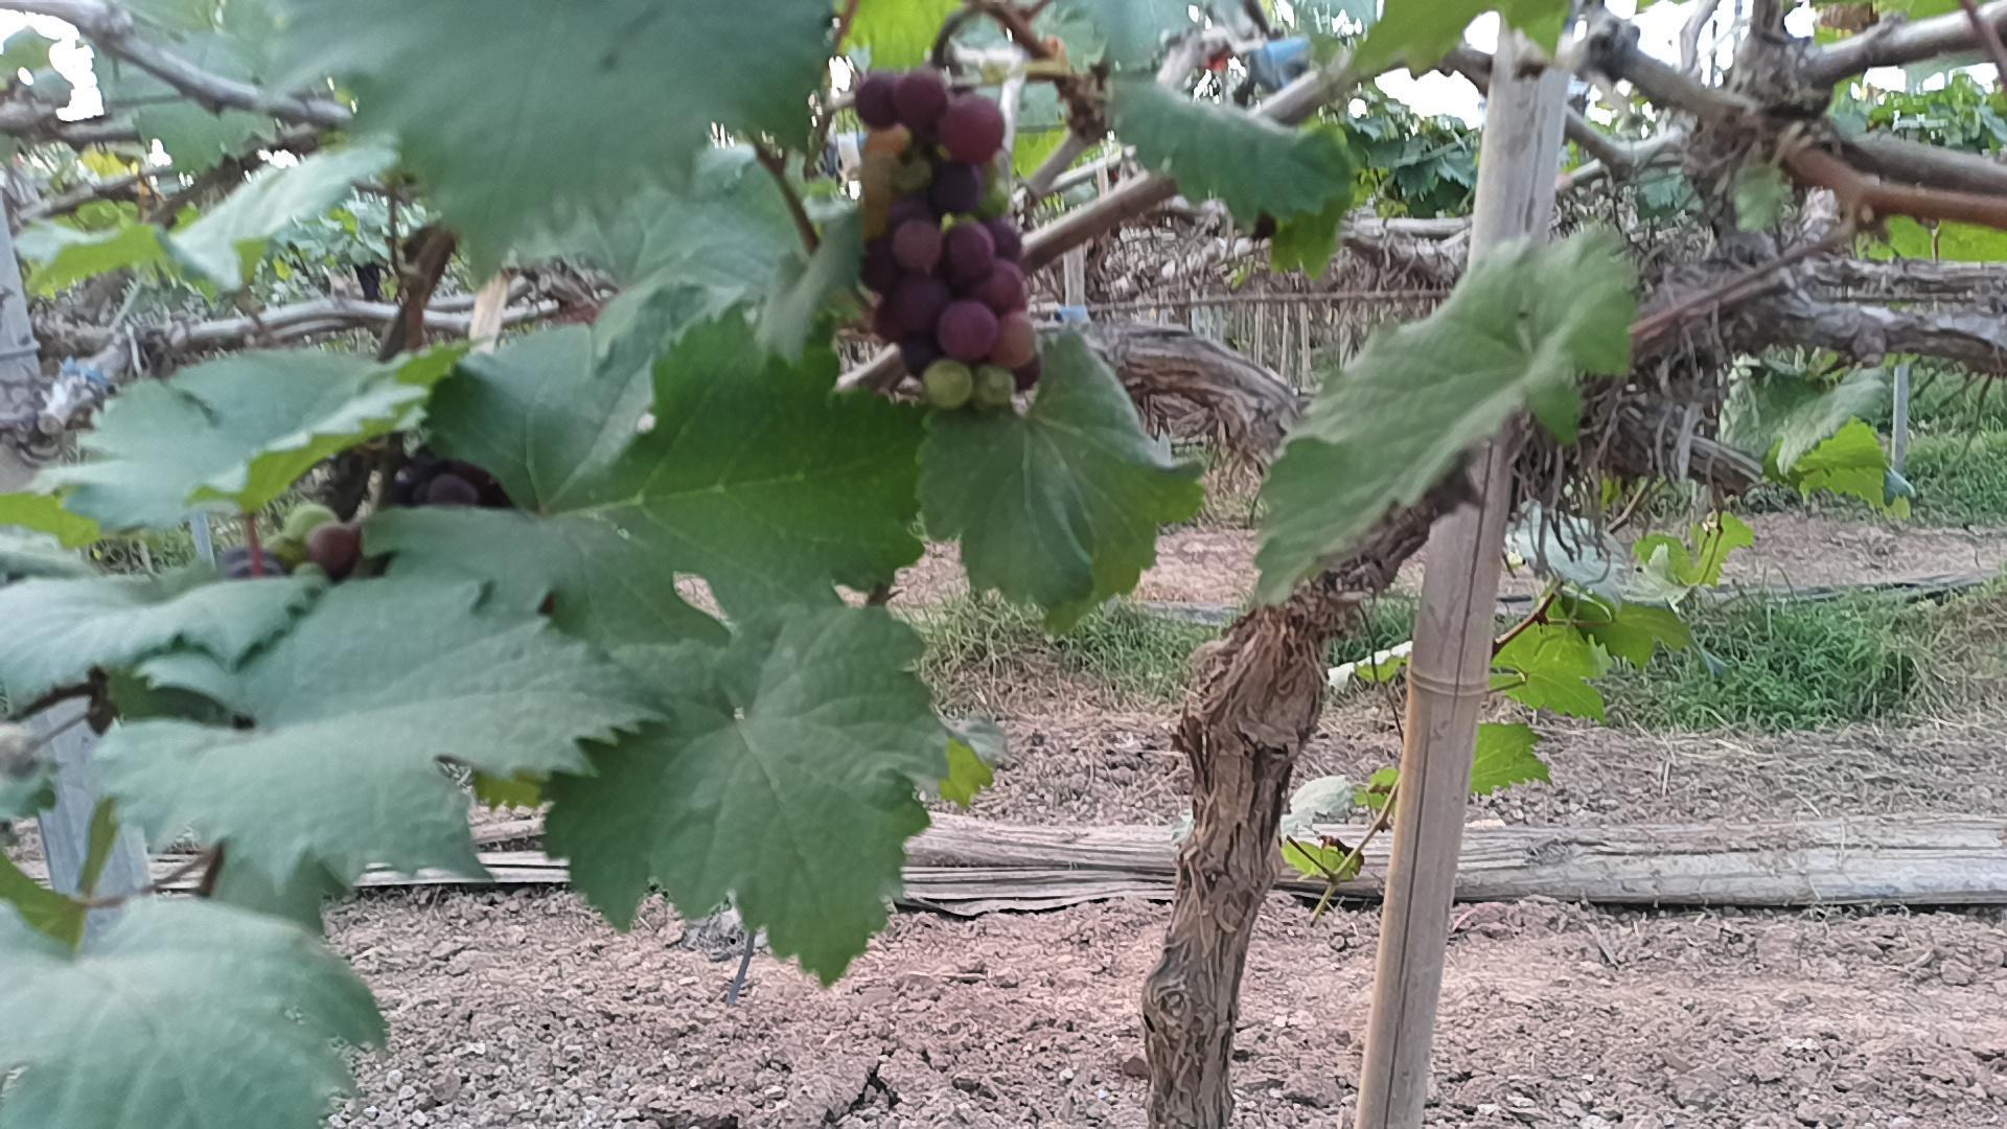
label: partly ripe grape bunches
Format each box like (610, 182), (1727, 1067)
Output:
(855, 67), (1039, 407)
(218, 429), (516, 579)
